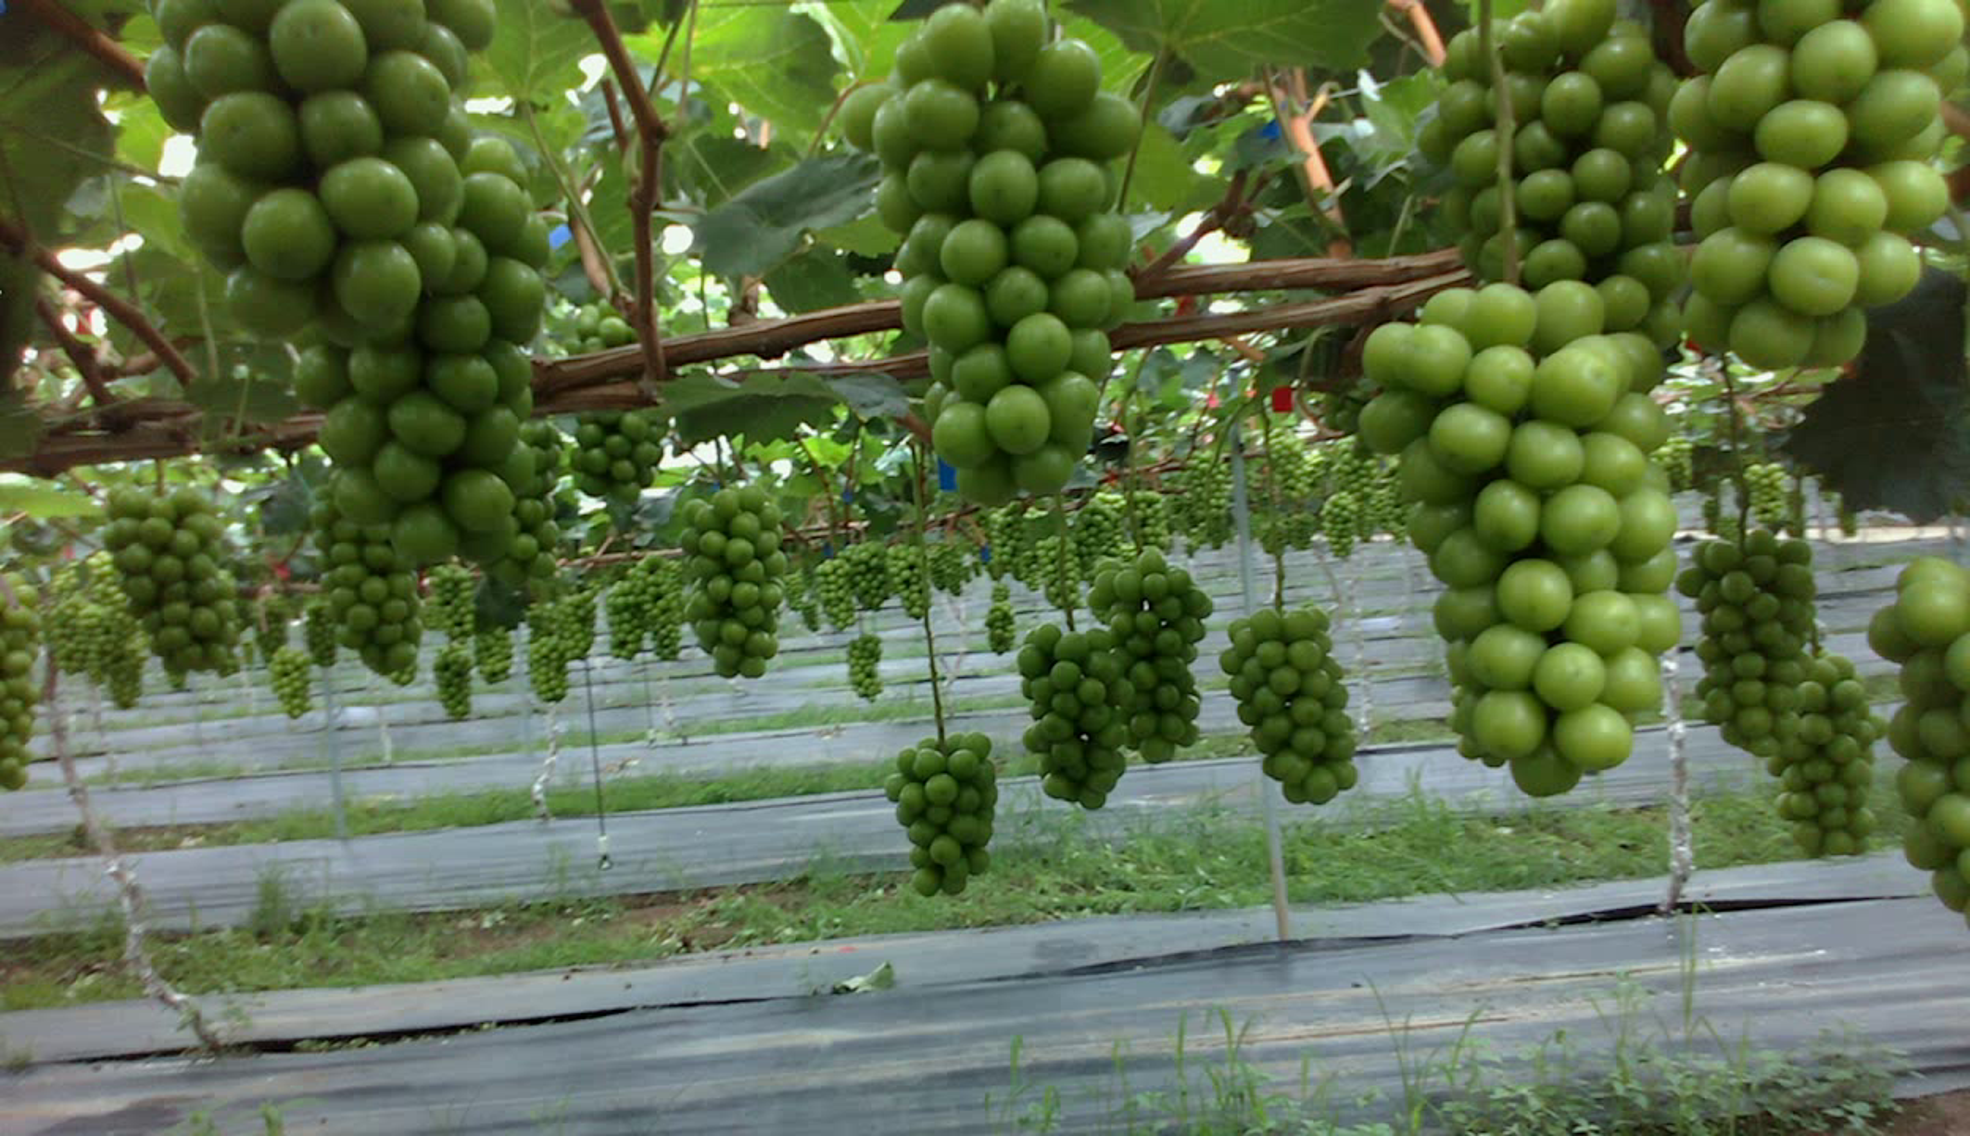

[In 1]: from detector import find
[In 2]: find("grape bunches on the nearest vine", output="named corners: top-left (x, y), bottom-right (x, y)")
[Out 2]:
top-left (1416, 0), bottom-right (1681, 350)
top-left (1673, 2), bottom-right (1968, 374)
top-left (287, 129), bottom-right (552, 571)
top-left (142, 0), bottom-right (494, 344)
top-left (1867, 557), bottom-right (1968, 914)
top-left (1356, 284), bottom-right (1683, 800)
top-left (840, 2), bottom-right (1135, 497)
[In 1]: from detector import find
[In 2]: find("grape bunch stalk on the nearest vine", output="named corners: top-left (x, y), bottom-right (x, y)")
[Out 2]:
top-left (1479, 2), bottom-right (1515, 282)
